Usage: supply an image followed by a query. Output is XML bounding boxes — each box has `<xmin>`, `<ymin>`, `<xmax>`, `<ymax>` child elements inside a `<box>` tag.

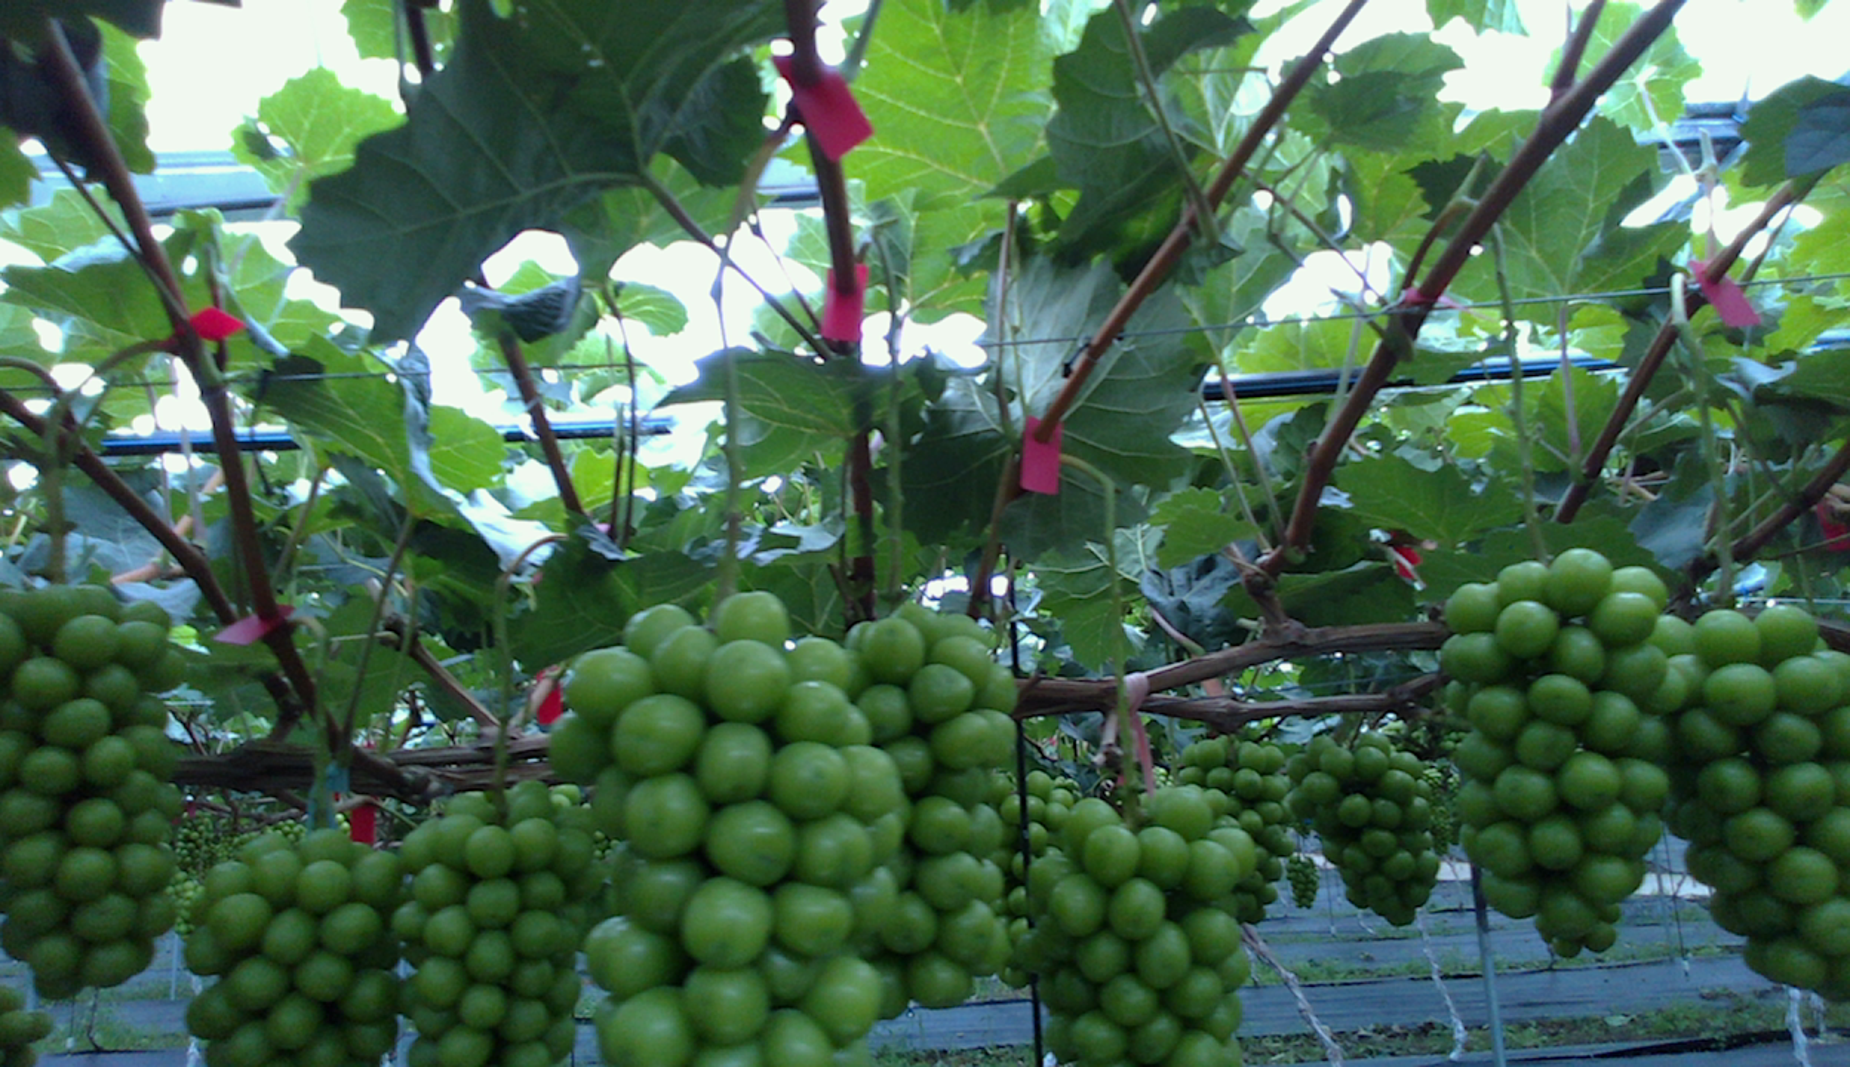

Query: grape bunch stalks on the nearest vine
<box><xmin>30</xmin><ymin>341</ymin><xmax>165</xmax><ymax>578</ymax></box>
<box><xmin>704</xmin><ymin>117</ymin><xmax>793</xmax><ymax>633</ymax></box>
<box><xmin>296</xmin><ymin>615</ymin><xmax>329</xmax><ymax>830</ymax></box>
<box><xmin>1668</xmin><ymin>273</ymin><xmax>1736</xmax><ymax>608</ymax></box>
<box><xmin>1061</xmin><ymin>453</ymin><xmax>1149</xmax><ymax>830</ymax></box>
<box><xmin>486</xmin><ymin>532</ymin><xmax>563</xmax><ymax>827</ymax></box>
<box><xmin>875</xmin><ymin>234</ymin><xmax>912</xmax><ymax>606</ymax></box>
<box><xmin>1491</xmin><ymin>231</ymin><xmax>1551</xmax><ymax>562</ymax></box>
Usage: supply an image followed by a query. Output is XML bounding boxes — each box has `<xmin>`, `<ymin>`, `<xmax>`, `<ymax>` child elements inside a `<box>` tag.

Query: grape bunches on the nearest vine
<box><xmin>845</xmin><ymin>603</ymin><xmax>1017</xmax><ymax>1021</ymax></box>
<box><xmin>548</xmin><ymin>593</ymin><xmax>906</xmax><ymax>1066</ymax></box>
<box><xmin>1441</xmin><ymin>550</ymin><xmax>1682</xmax><ymax>943</ymax></box>
<box><xmin>1660</xmin><ymin>602</ymin><xmax>1849</xmax><ymax>1008</ymax></box>
<box><xmin>1017</xmin><ymin>785</ymin><xmax>1254</xmax><ymax>1066</ymax></box>
<box><xmin>391</xmin><ymin>781</ymin><xmax>600</xmax><ymax>1066</ymax></box>
<box><xmin>185</xmin><ymin>828</ymin><xmax>409</xmax><ymax>1066</ymax></box>
<box><xmin>1</xmin><ymin>581</ymin><xmax>190</xmax><ymax>1000</ymax></box>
